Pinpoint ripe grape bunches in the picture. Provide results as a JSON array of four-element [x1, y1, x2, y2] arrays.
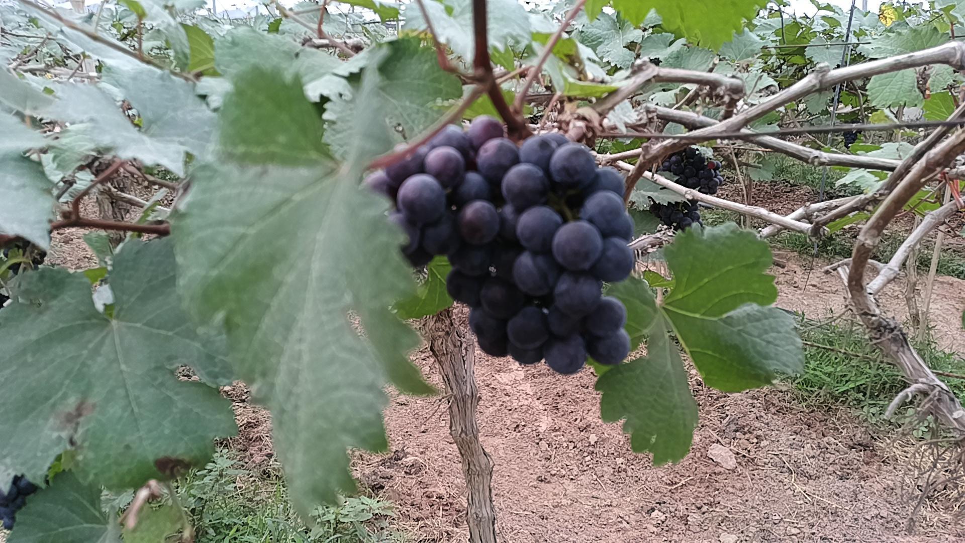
[[843, 119, 862, 150], [3, 240, 46, 276], [364, 115, 633, 374], [648, 147, 723, 231], [0, 475, 39, 530]]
